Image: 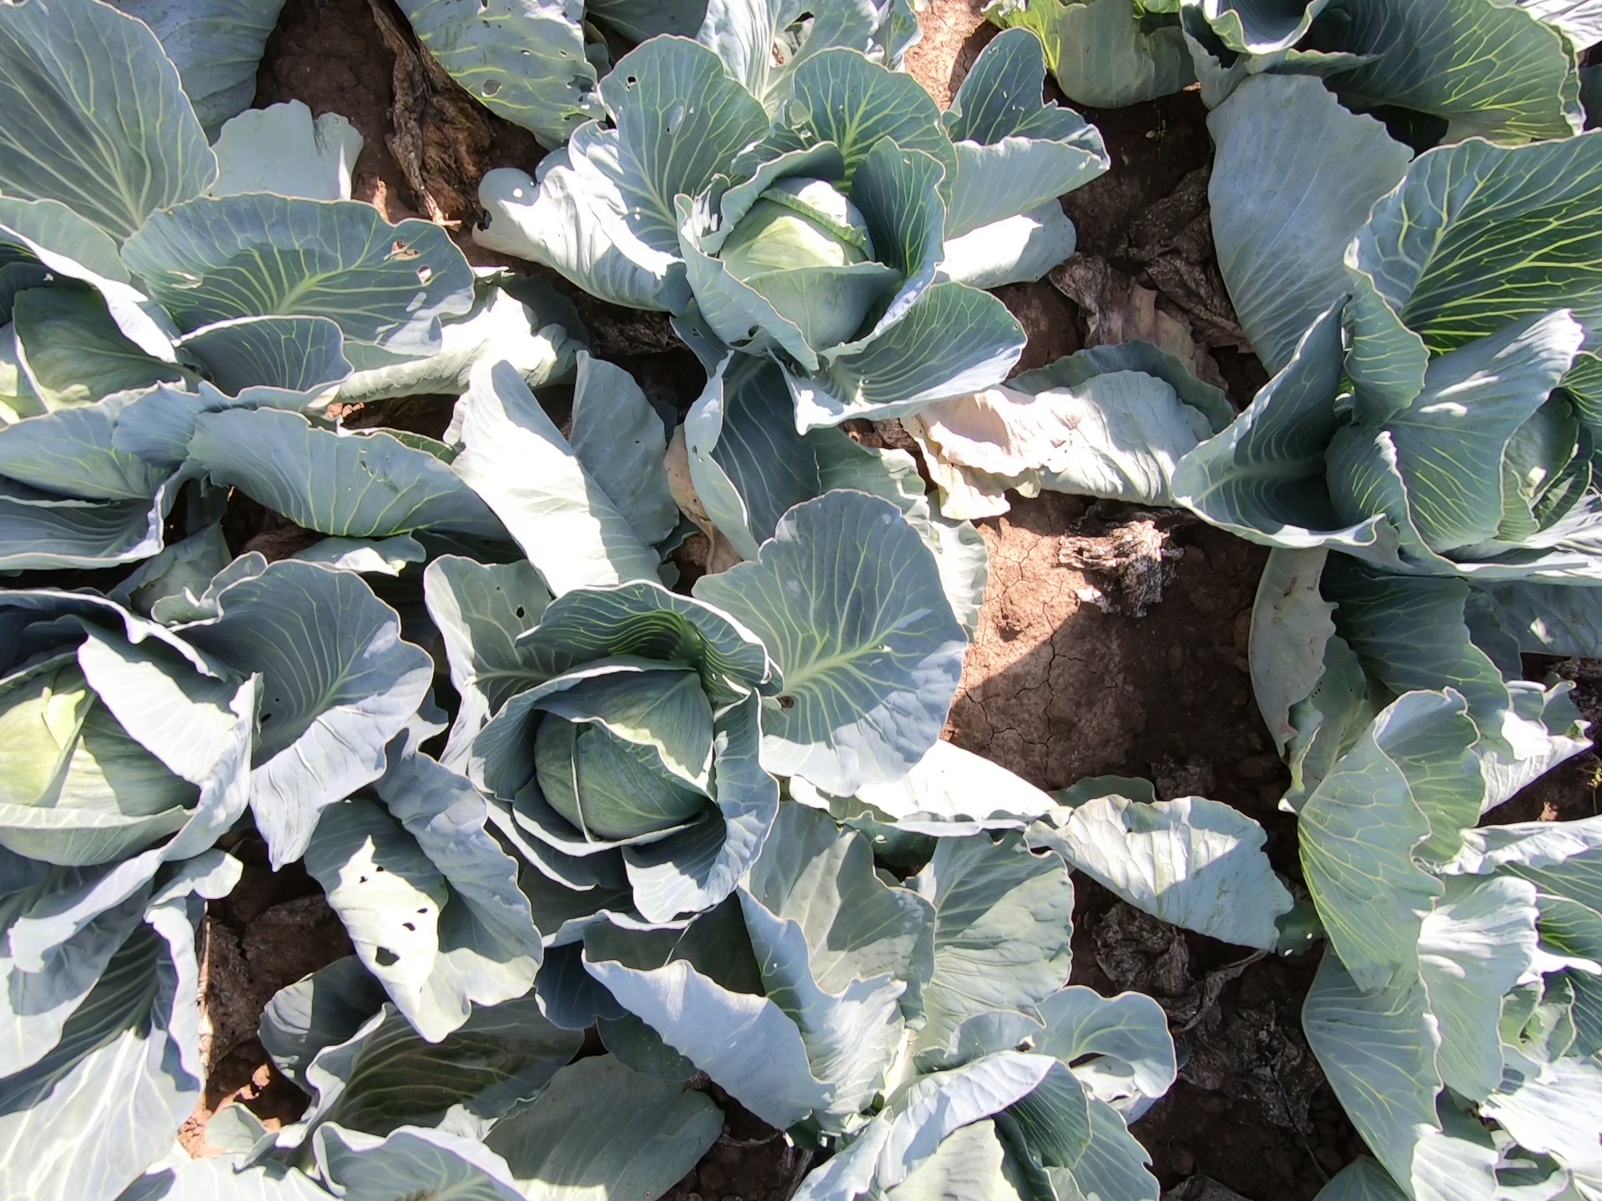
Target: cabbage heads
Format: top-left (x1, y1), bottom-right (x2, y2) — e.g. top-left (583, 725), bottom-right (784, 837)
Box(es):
top-left (1390, 392), bottom-right (1564, 547)
top-left (534, 665), bottom-right (715, 837)
top-left (715, 177), bottom-right (875, 346)
top-left (3, 310), bottom-right (189, 488)
top-left (2, 652), bottom-right (229, 862)
top-left (856, 1103), bottom-right (1033, 1197)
